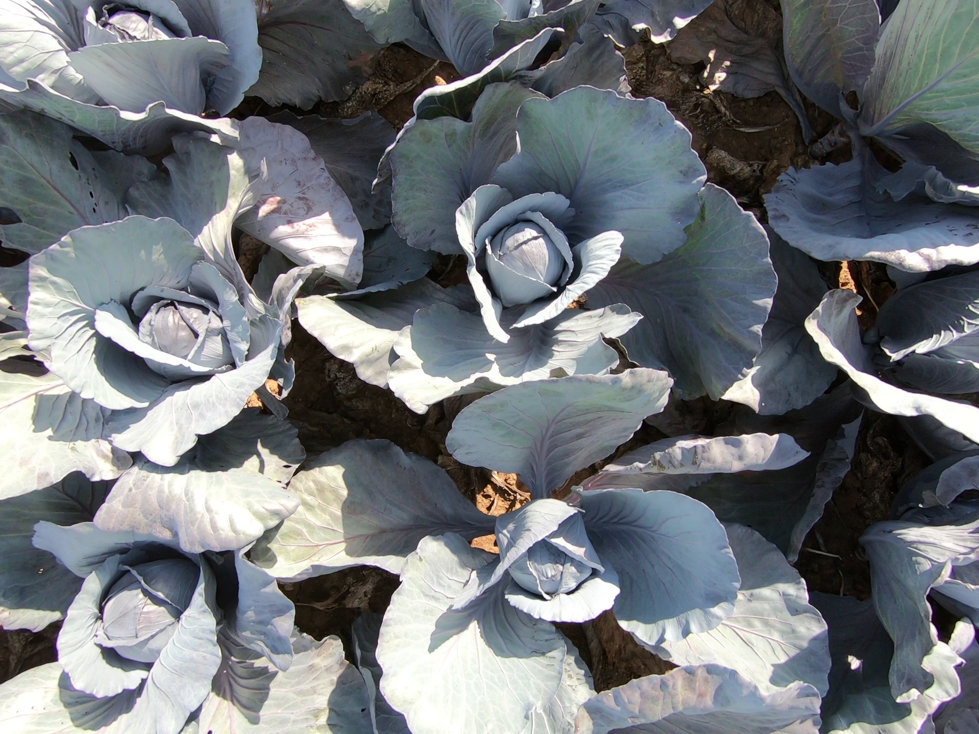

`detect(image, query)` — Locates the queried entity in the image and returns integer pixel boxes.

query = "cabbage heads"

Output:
[439,4,529,55]
[486,222,570,301]
[106,561,215,664]
[137,301,232,378]
[505,502,595,595]
[91,12,192,113]
[897,282,978,379]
